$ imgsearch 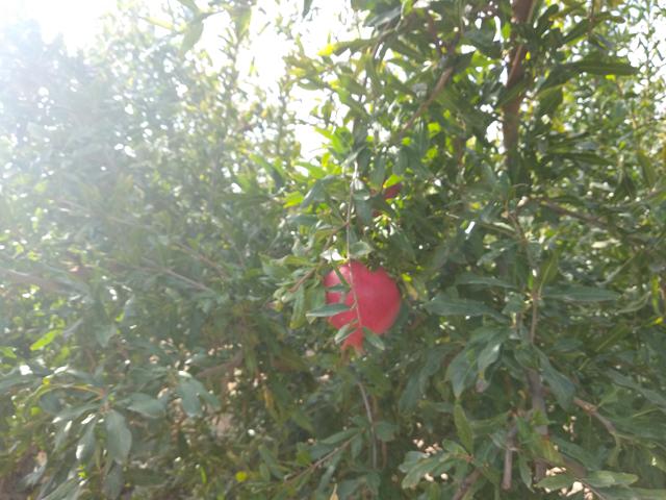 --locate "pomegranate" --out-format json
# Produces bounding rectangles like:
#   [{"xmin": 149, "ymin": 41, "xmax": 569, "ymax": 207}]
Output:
[{"xmin": 324, "ymin": 258, "xmax": 401, "ymax": 353}]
